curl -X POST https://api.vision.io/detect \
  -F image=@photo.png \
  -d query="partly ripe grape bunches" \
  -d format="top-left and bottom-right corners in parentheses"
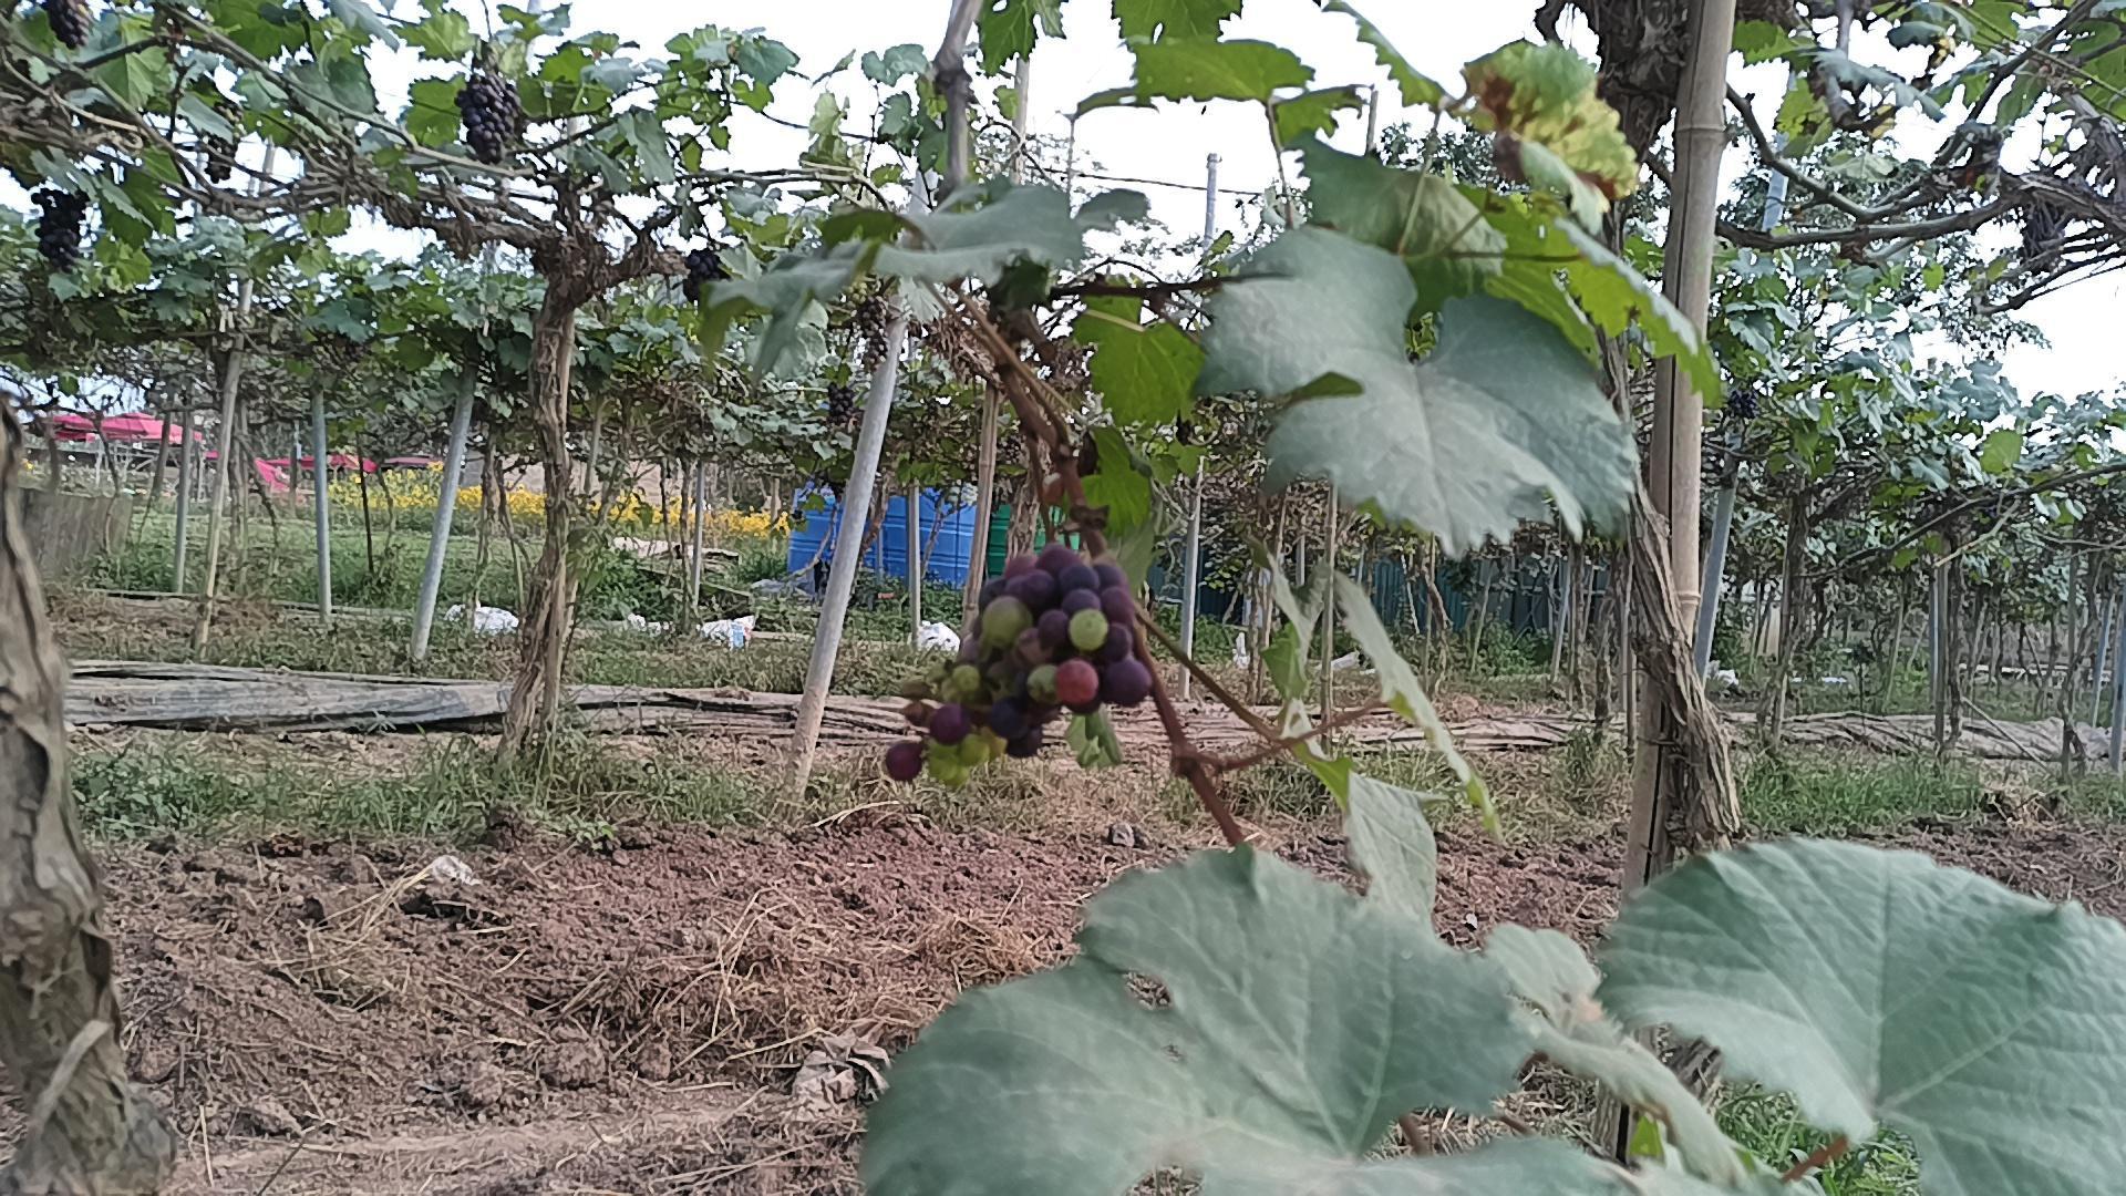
top-left (885, 545), bottom-right (1153, 787)
top-left (843, 281), bottom-right (889, 375)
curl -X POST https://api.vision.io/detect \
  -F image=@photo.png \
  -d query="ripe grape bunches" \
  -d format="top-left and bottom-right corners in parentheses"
top-left (454, 73), bottom-right (522, 165)
top-left (205, 99), bottom-right (244, 183)
top-left (826, 382), bottom-right (856, 425)
top-left (31, 187), bottom-right (92, 274)
top-left (40, 0), bottom-right (90, 49)
top-left (683, 246), bottom-right (721, 302)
